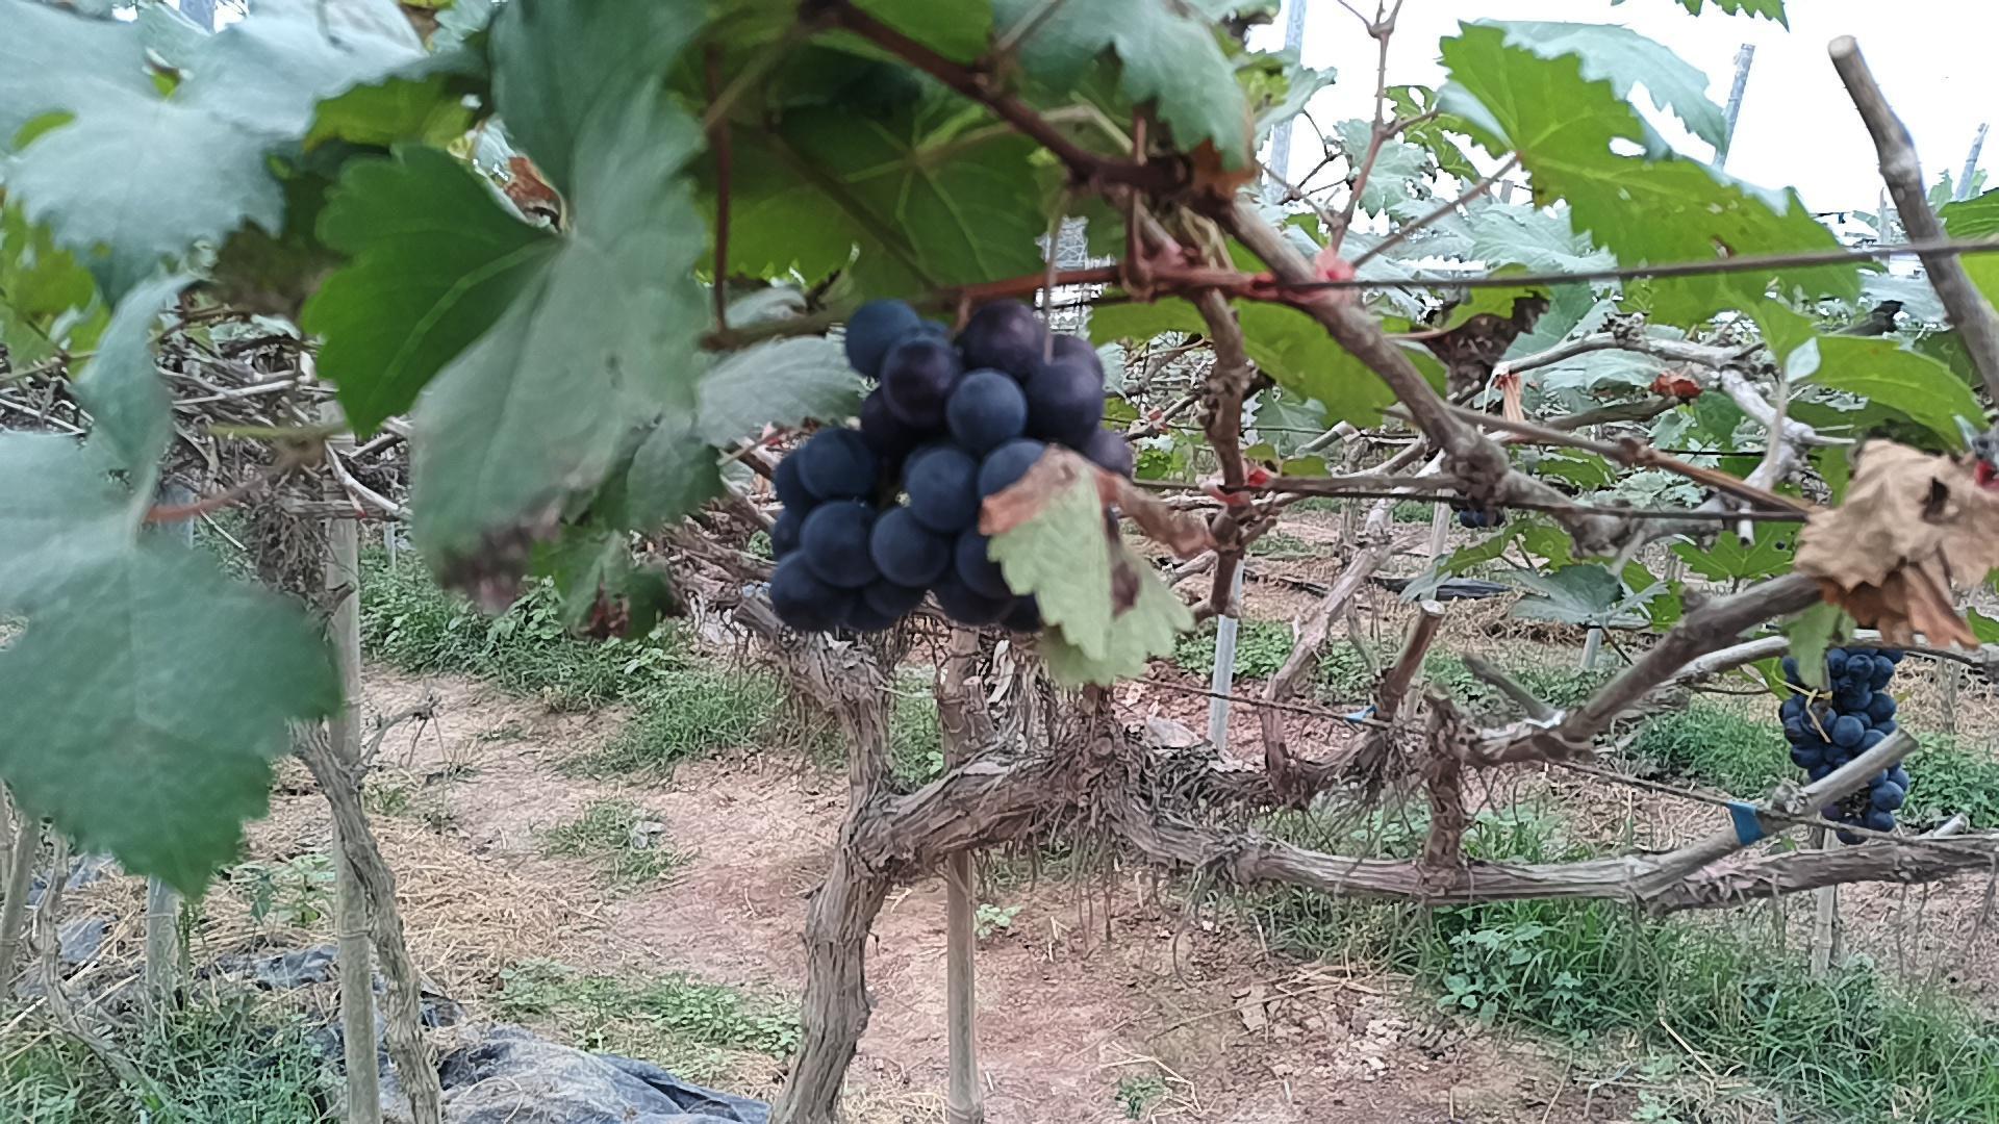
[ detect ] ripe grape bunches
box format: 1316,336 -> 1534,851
1779,643 -> 1911,845
1449,500 -> 1505,528
769,299 -> 1132,631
